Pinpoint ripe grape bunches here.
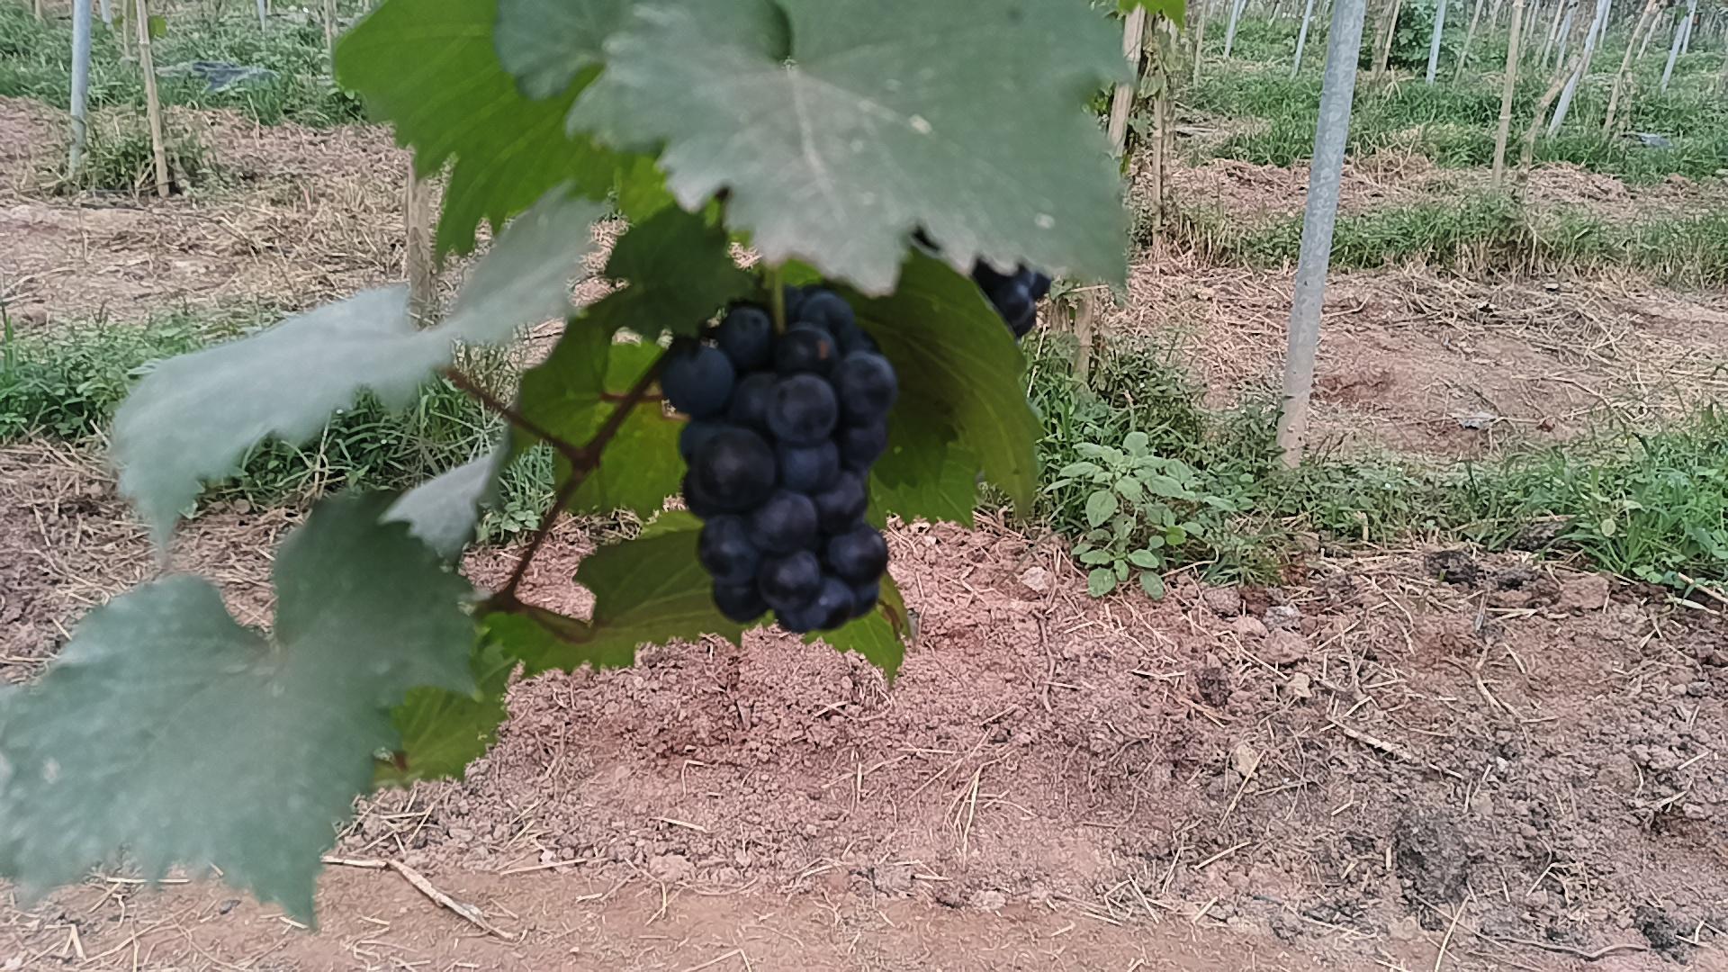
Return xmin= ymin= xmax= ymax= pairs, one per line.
xmin=661 ymin=284 xmax=898 ymax=633
xmin=971 ymin=259 xmax=1052 ymax=339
